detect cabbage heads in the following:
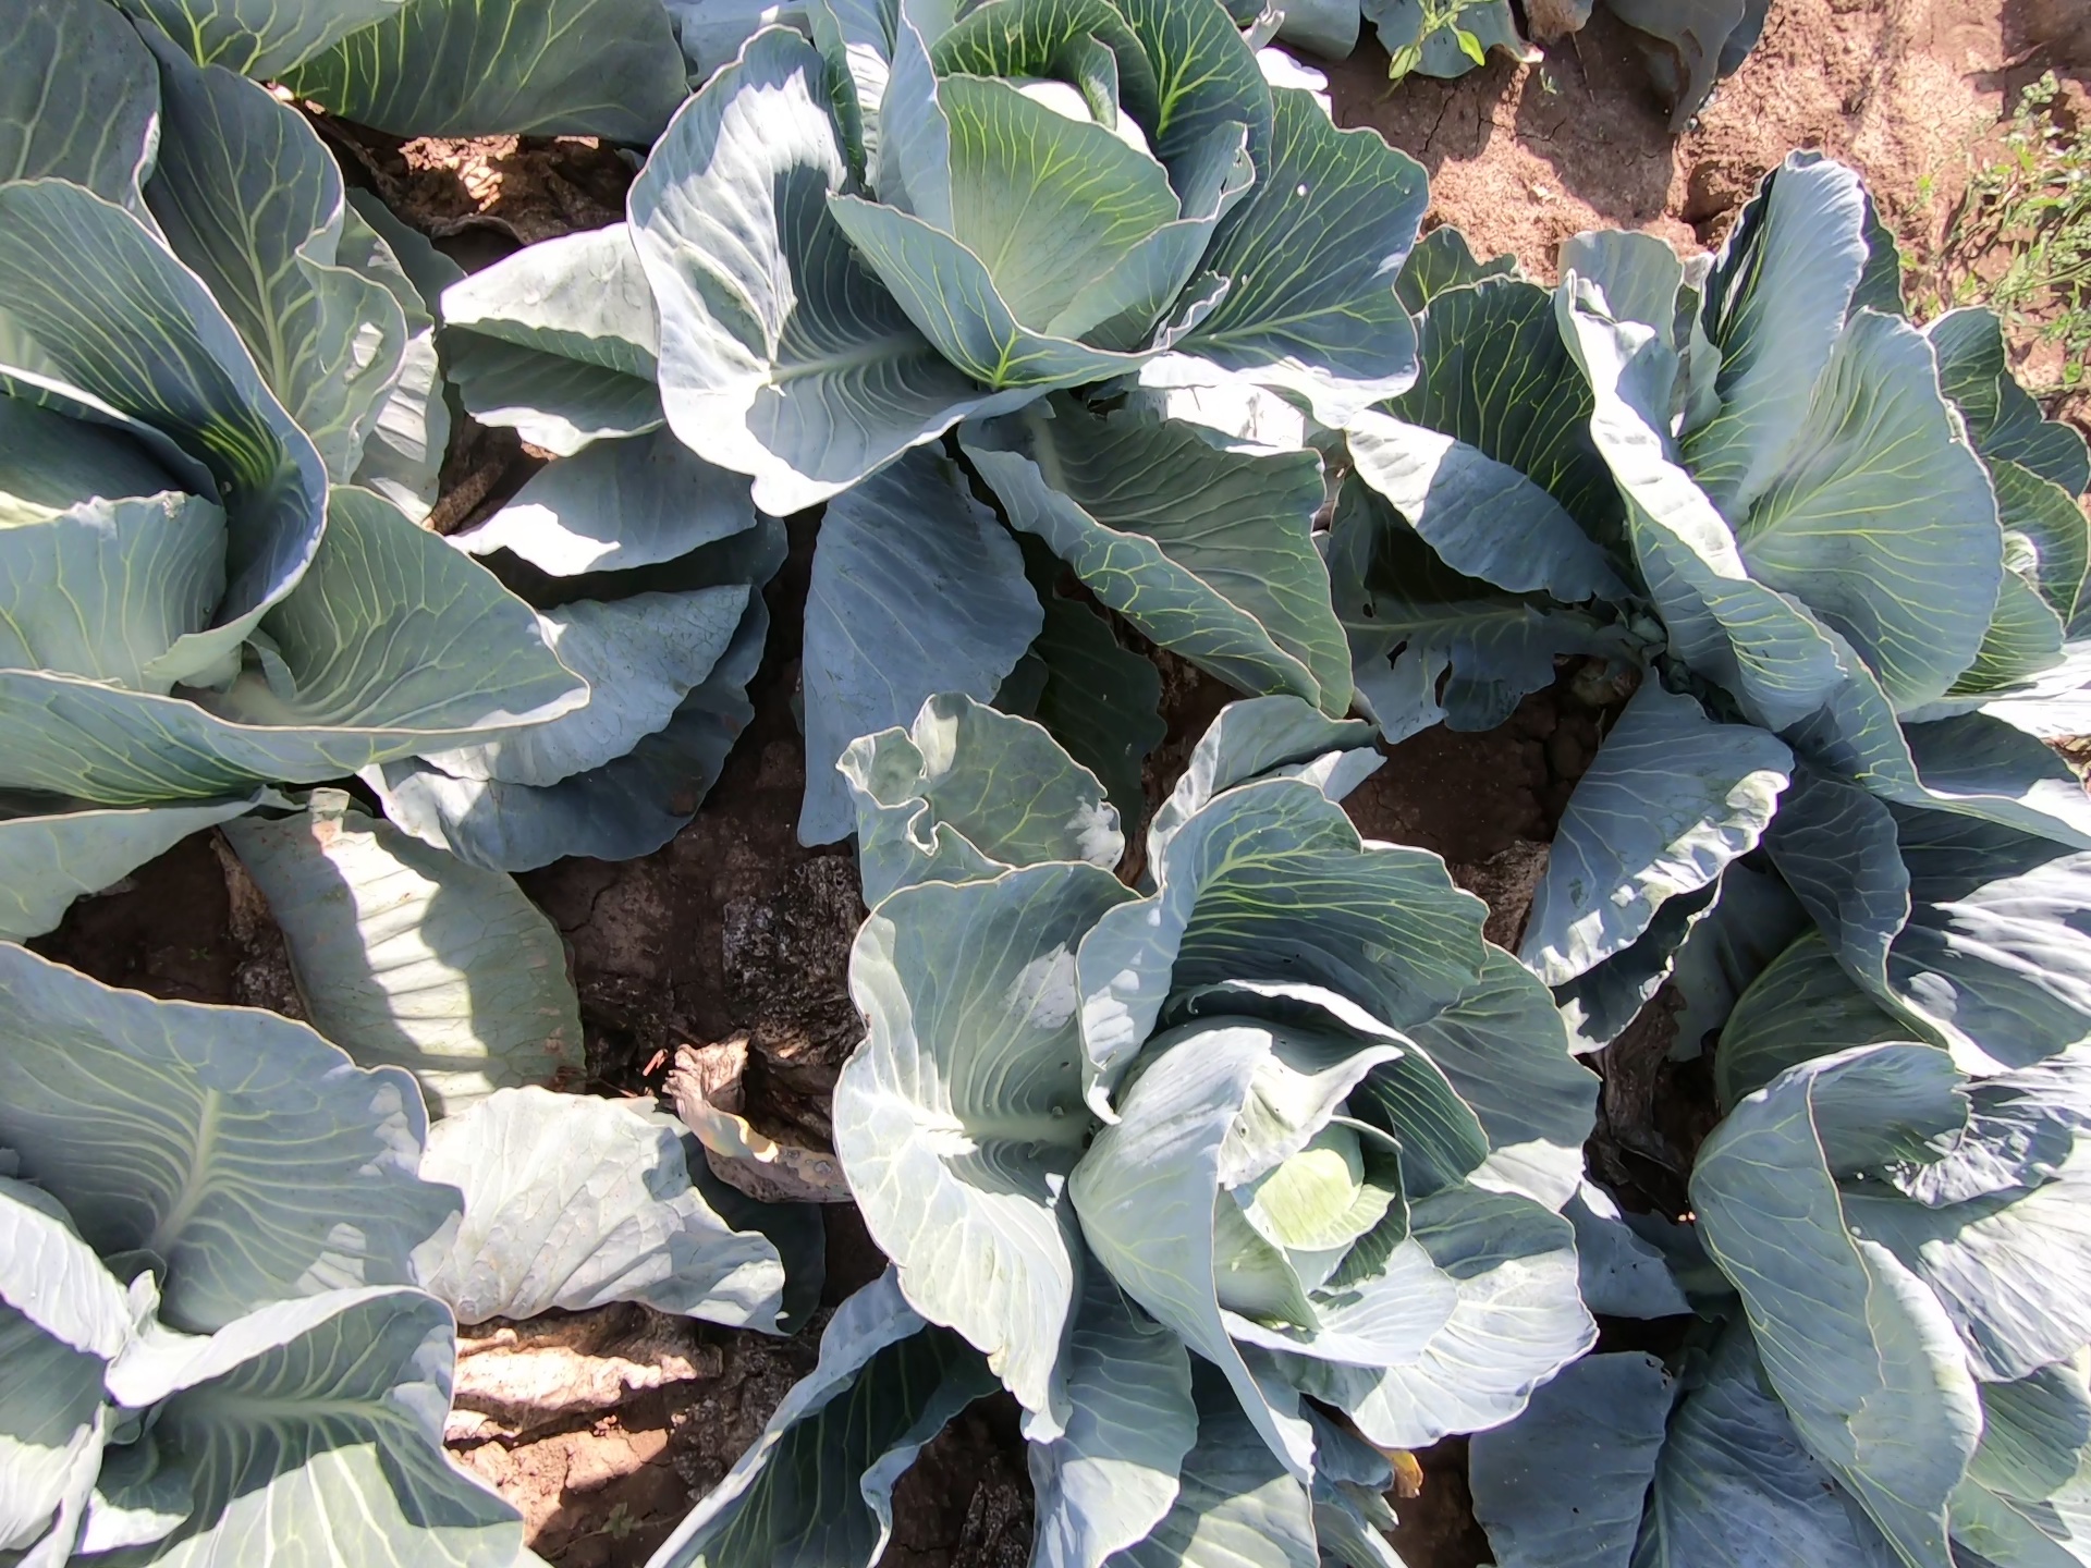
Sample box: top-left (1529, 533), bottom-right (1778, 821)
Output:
top-left (4, 406), bottom-right (199, 703)
top-left (1099, 1020), bottom-right (1359, 1303)
top-left (922, 76), bottom-right (1157, 328)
